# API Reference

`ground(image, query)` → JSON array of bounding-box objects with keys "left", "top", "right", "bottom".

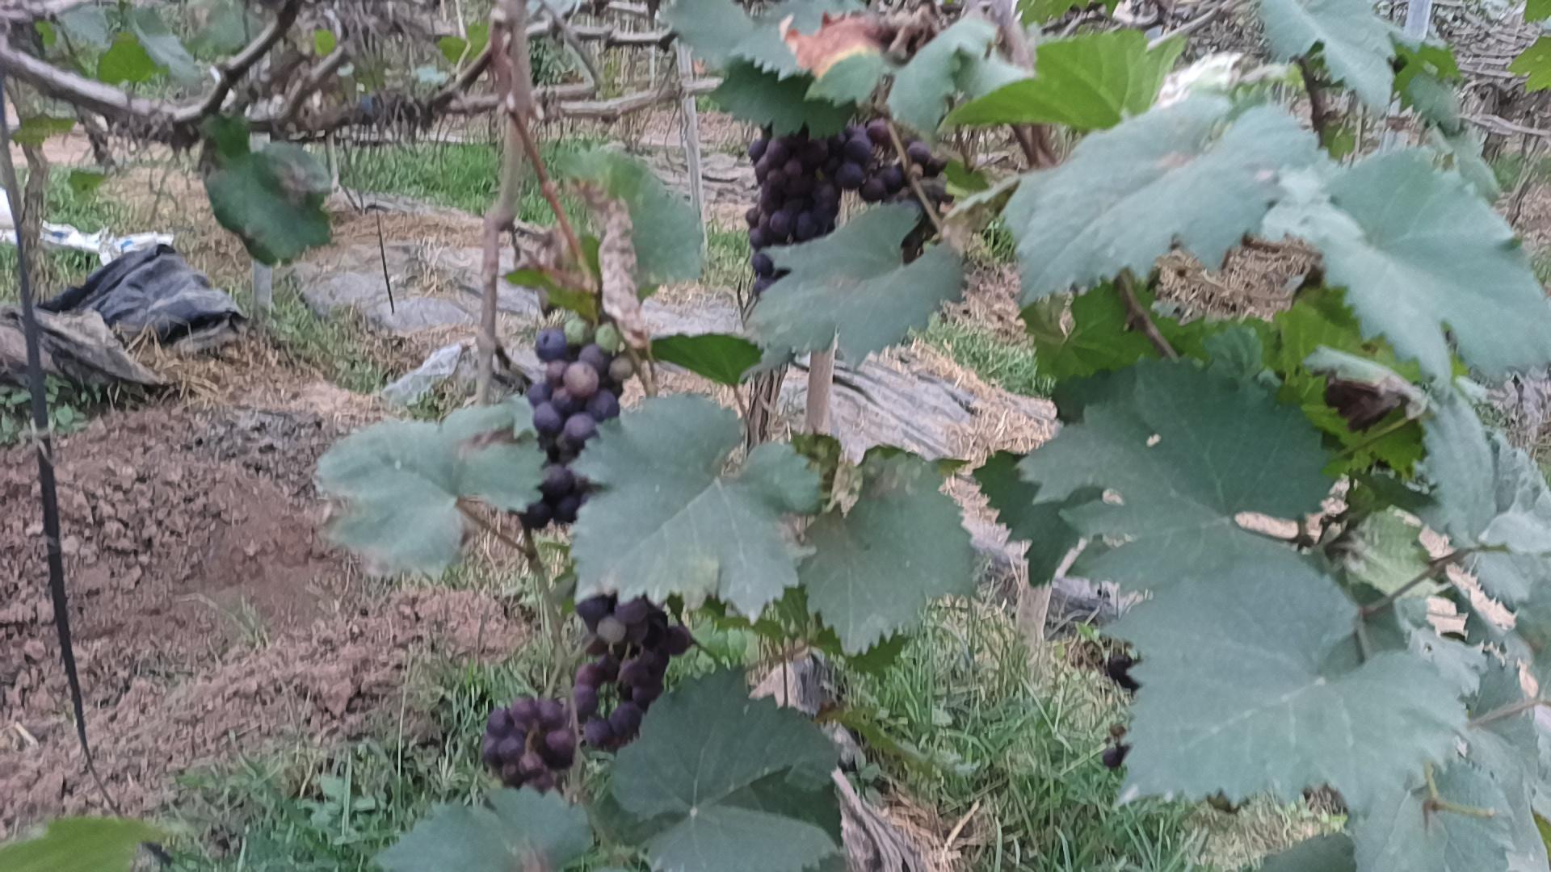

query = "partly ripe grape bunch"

[{"left": 520, "top": 319, "right": 635, "bottom": 530}]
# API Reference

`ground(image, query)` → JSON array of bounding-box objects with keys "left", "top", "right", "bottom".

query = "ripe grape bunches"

[
  {"left": 745, "top": 116, "right": 950, "bottom": 298},
  {"left": 482, "top": 593, "right": 693, "bottom": 791}
]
